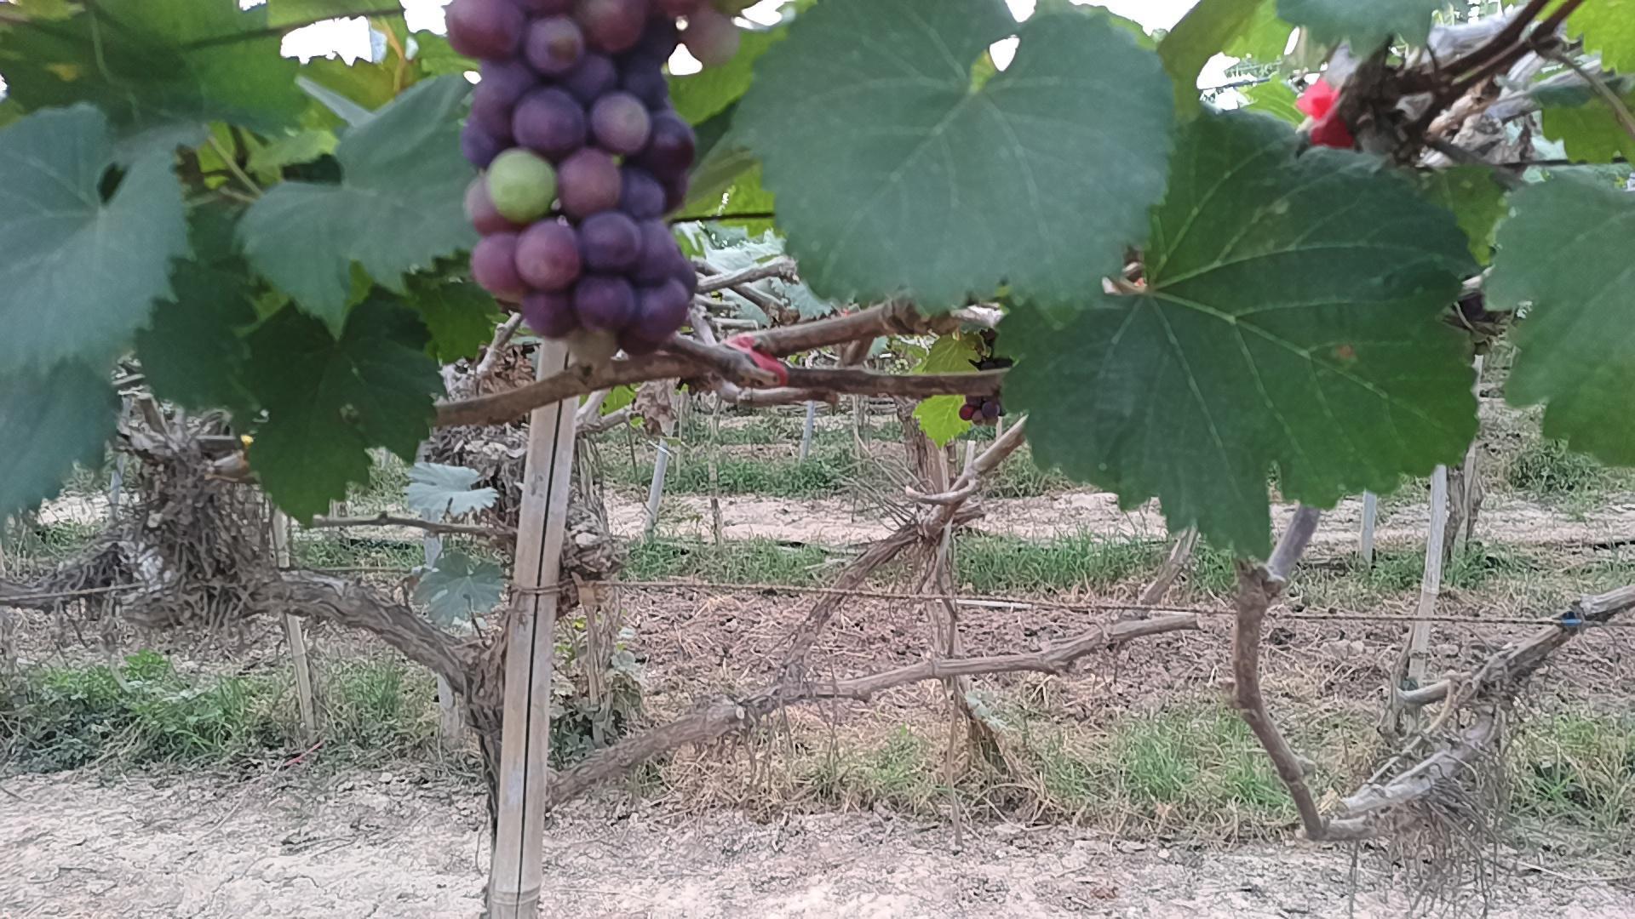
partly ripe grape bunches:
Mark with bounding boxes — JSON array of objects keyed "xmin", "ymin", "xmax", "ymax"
[
  {"xmin": 445, "ymin": 0, "xmax": 736, "ymax": 353},
  {"xmin": 1444, "ymin": 286, "xmax": 1529, "ymax": 357},
  {"xmin": 957, "ymin": 328, "xmax": 1015, "ymax": 425}
]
